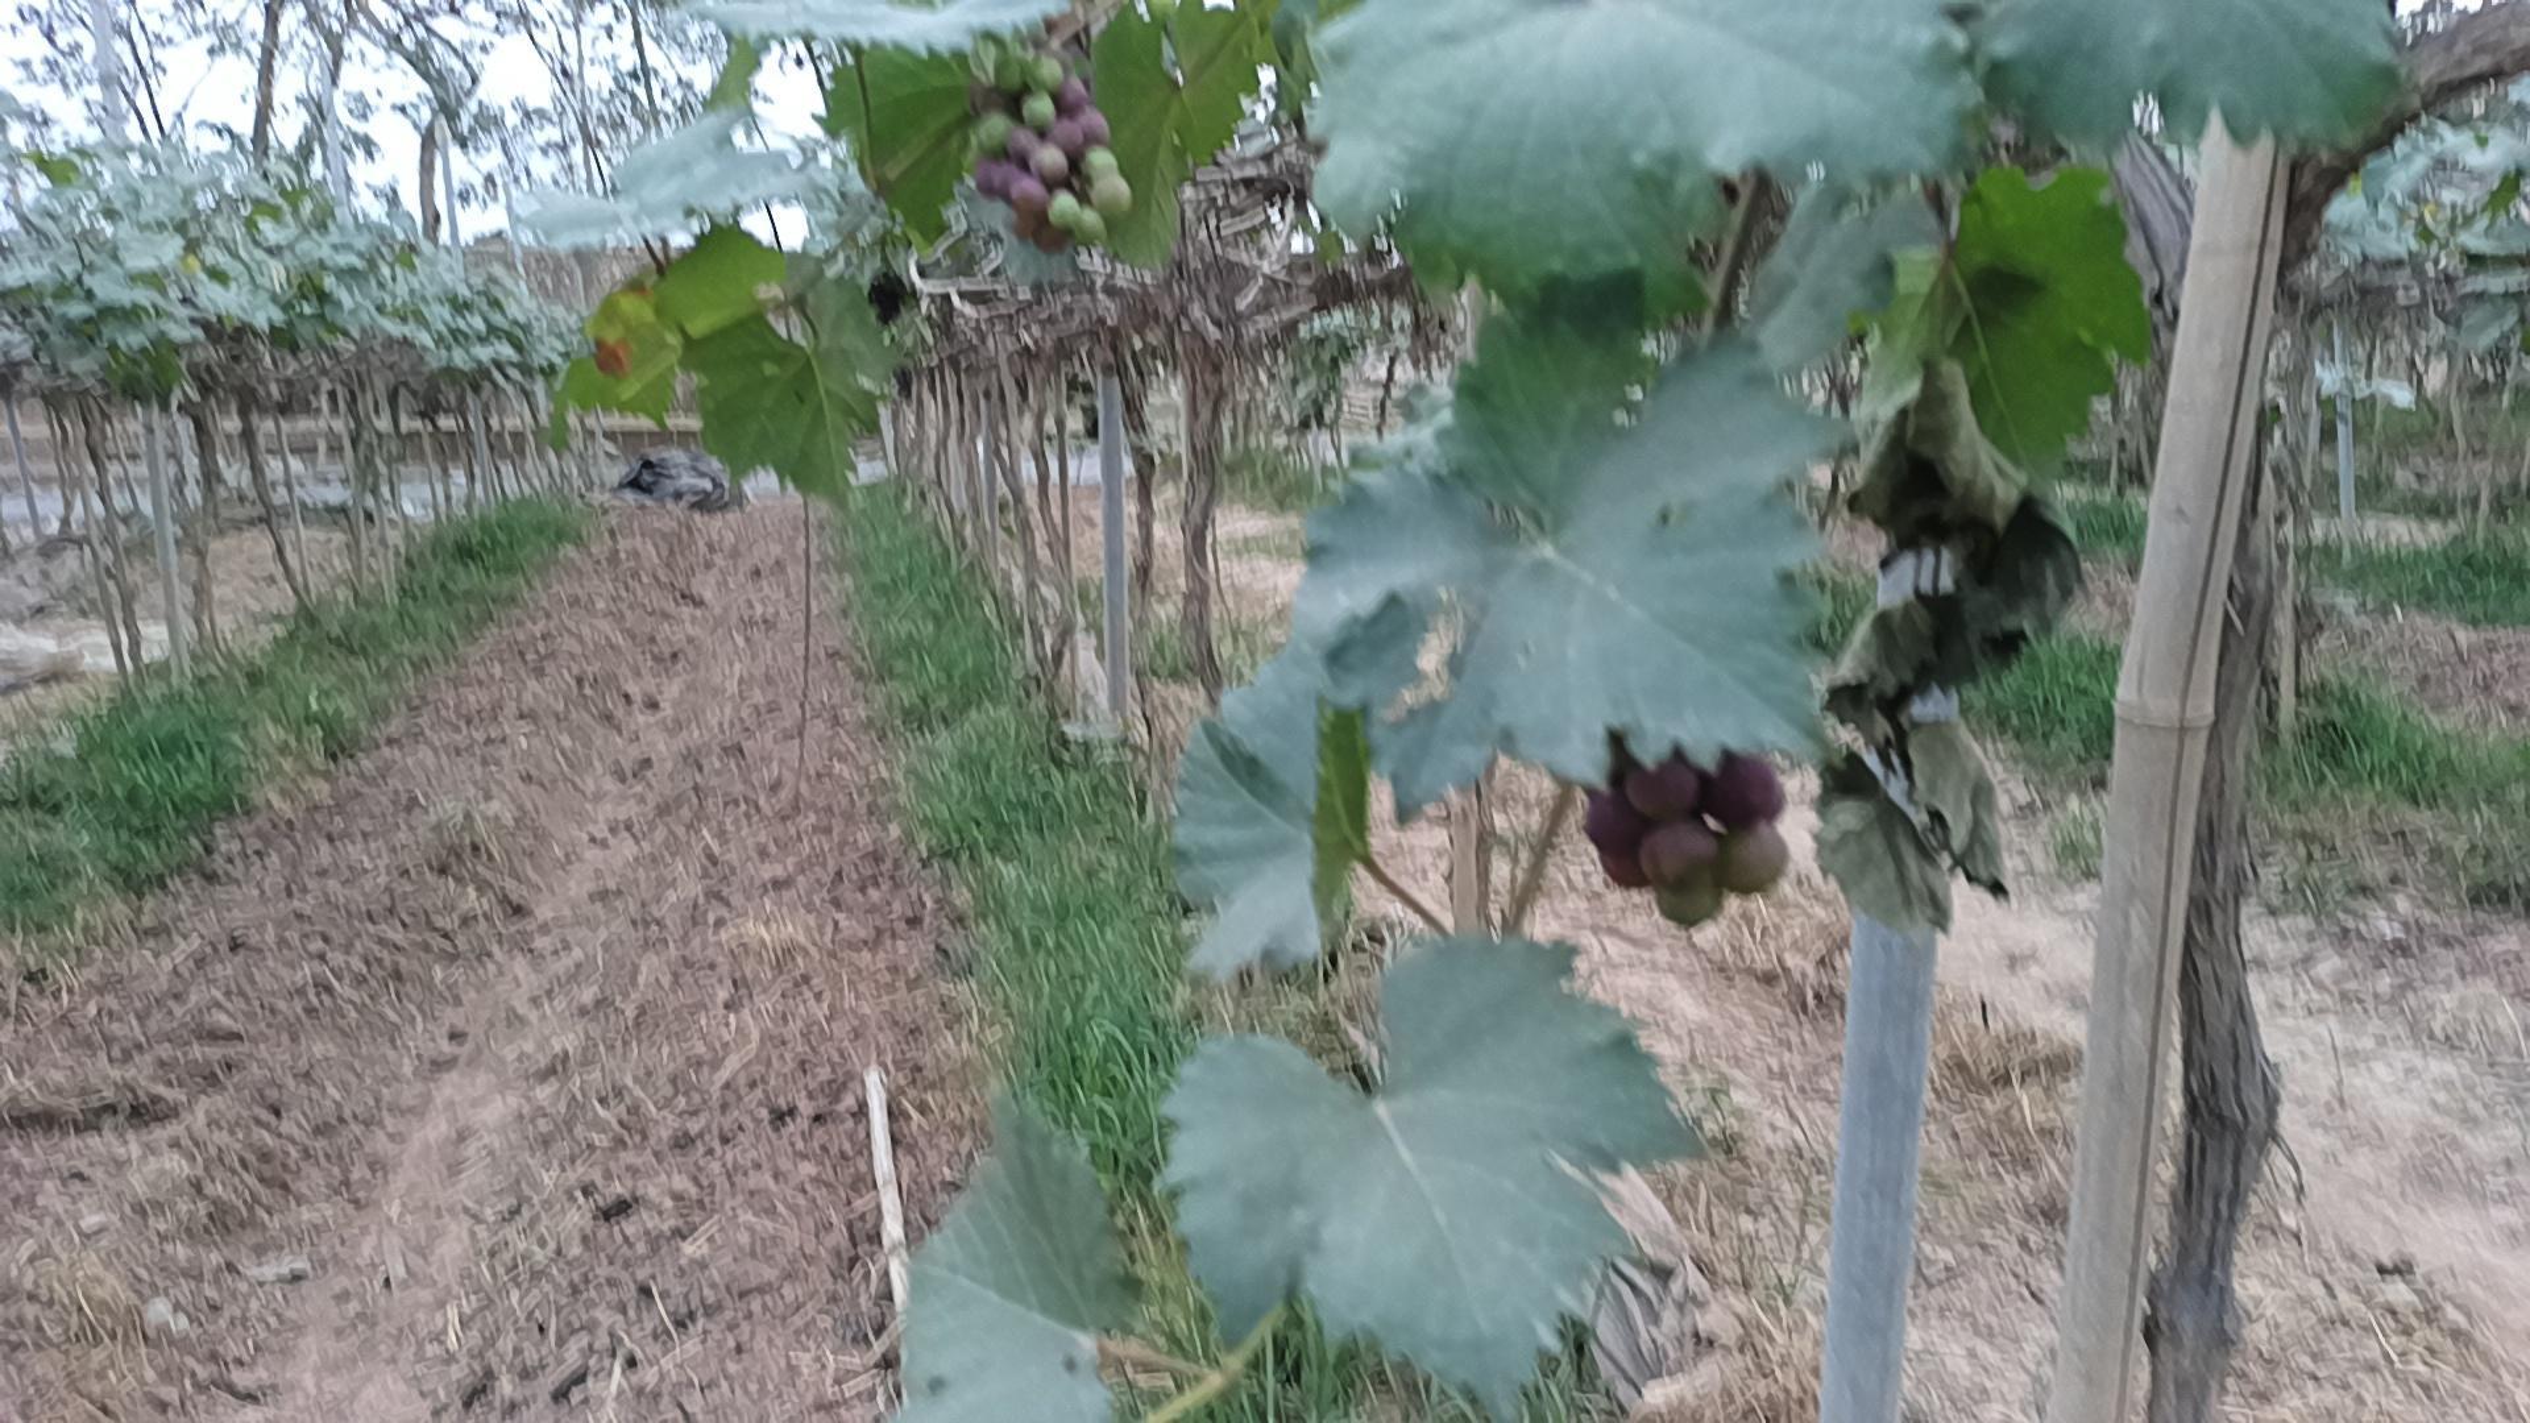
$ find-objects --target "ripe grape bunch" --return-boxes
[867,270,911,325]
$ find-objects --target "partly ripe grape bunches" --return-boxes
[969,42,1131,250]
[1585,747,1788,926]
